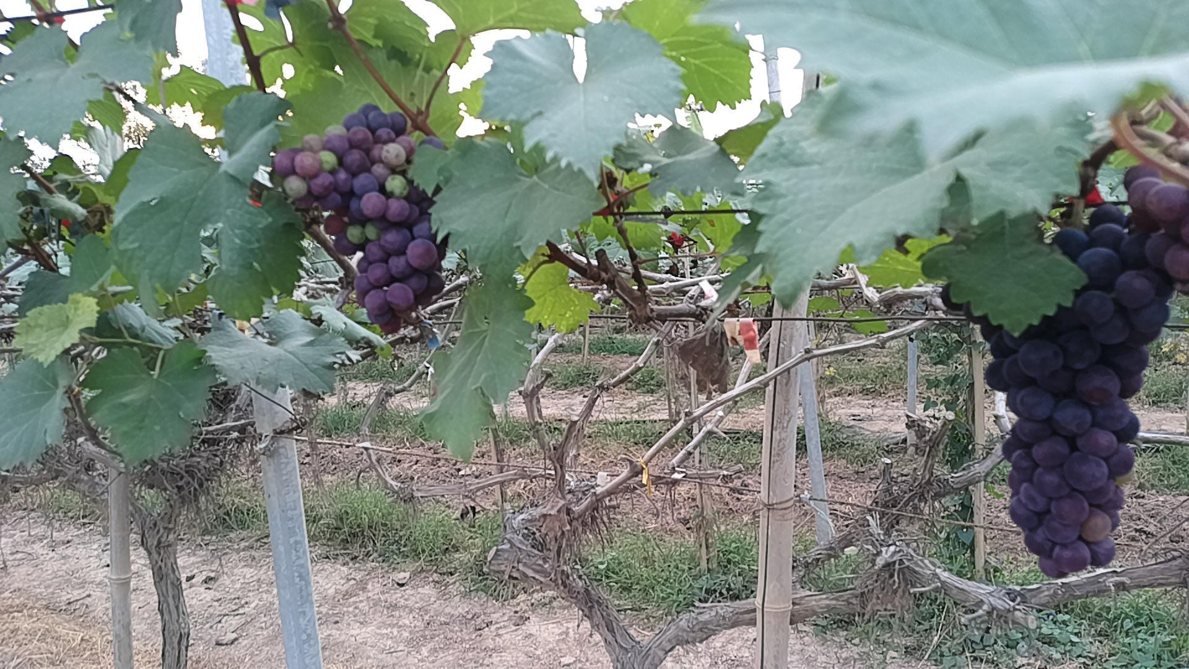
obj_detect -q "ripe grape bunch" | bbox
[972,165,1188,577]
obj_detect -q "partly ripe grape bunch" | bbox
[272,104,445,333]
